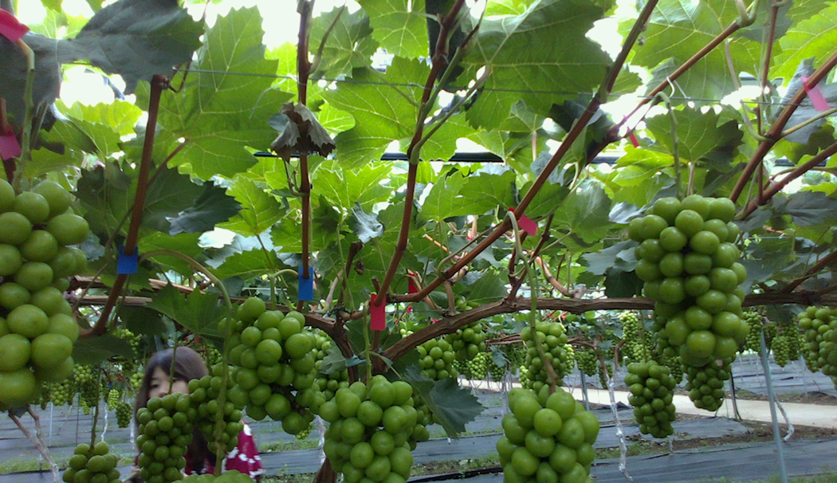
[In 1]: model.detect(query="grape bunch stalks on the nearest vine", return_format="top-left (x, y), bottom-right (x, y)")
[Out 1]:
top-left (502, 211), bottom-right (555, 394)
top-left (657, 91), bottom-right (683, 202)
top-left (168, 323), bottom-right (177, 394)
top-left (270, 269), bottom-right (298, 310)
top-left (137, 249), bottom-right (233, 476)
top-left (363, 299), bottom-right (372, 391)
top-left (11, 38), bottom-right (34, 195)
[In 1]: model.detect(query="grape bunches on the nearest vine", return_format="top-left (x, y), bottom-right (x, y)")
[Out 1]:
top-left (629, 195), bottom-right (750, 366)
top-left (0, 177), bottom-right (89, 405)
top-left (136, 392), bottom-right (197, 482)
top-left (228, 297), bottom-right (327, 435)
top-left (498, 385), bottom-right (598, 482)
top-left (318, 375), bottom-right (415, 482)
